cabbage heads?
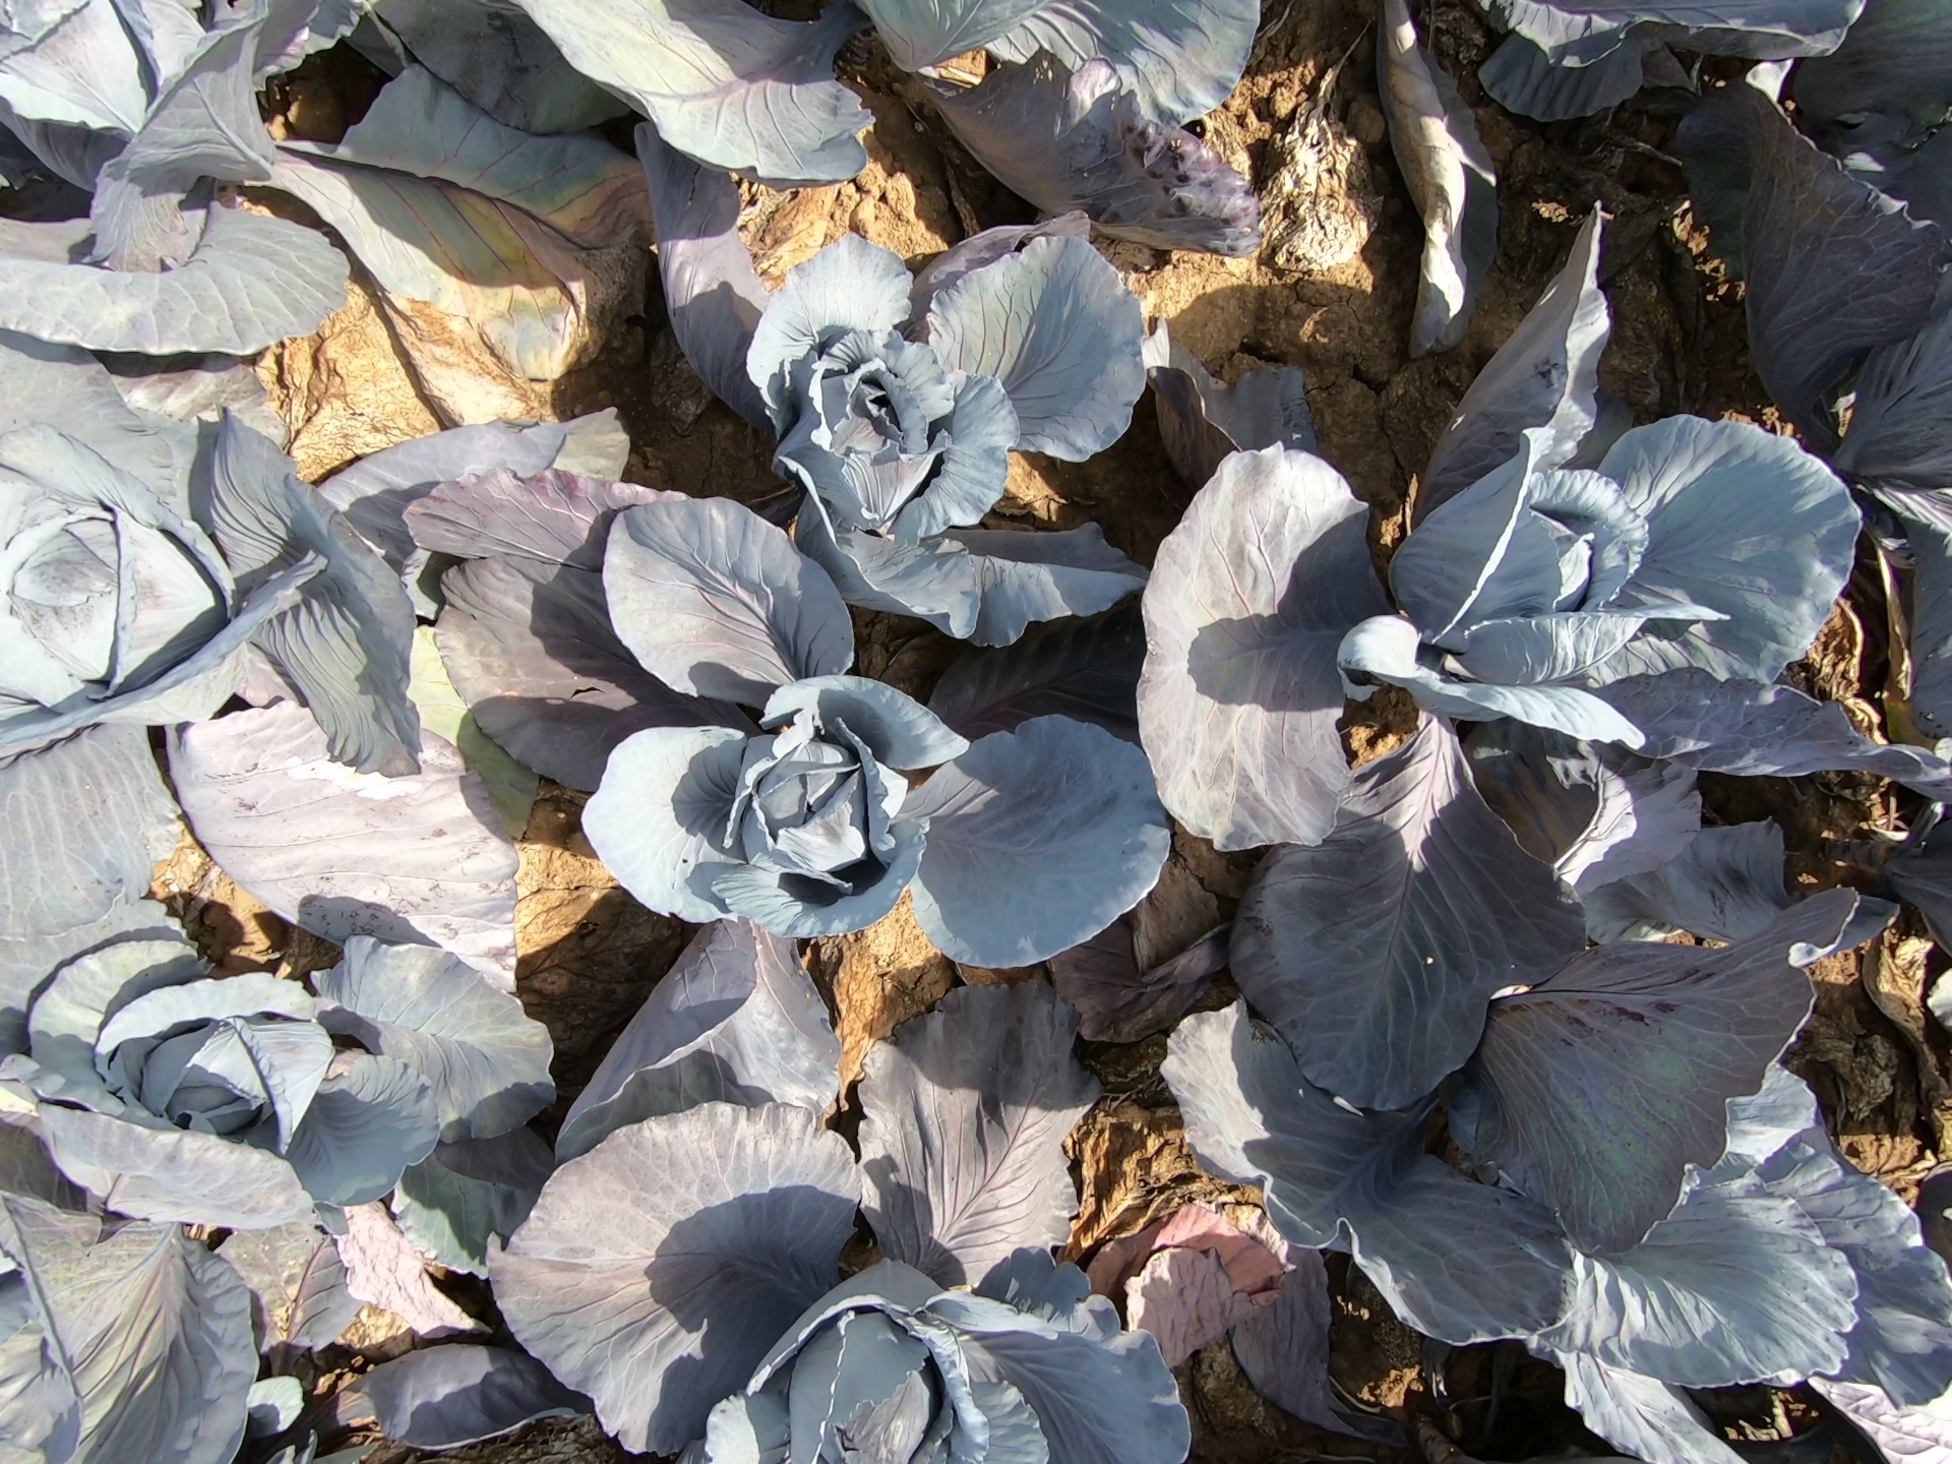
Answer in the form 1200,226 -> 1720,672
0,0 -> 227,189
809,379 -> 910,516
751,739 -> 890,876
147,1025 -> 285,1140
6,517 -> 223,688
1431,506 -> 1593,639
791,1313 -> 935,1461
